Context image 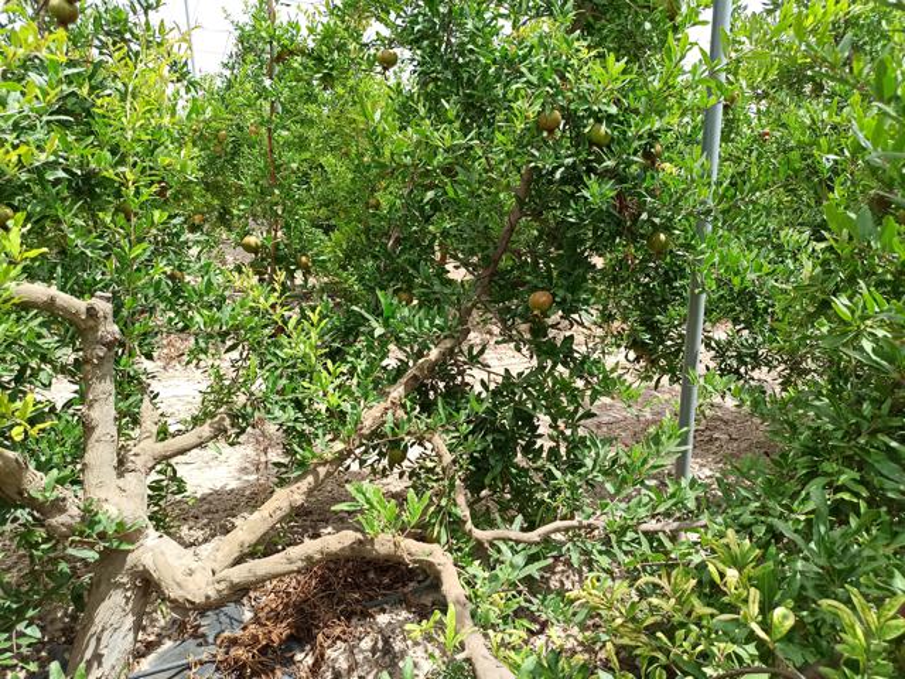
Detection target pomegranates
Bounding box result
[529,290,554,318]
[762,129,771,140]
[376,48,399,72]
[240,235,262,253]
[539,109,563,140]
[648,231,666,259]
[48,0,79,27]
[590,123,611,147]
[0,202,14,229]
[297,255,313,276]
[191,214,205,225]
[396,291,413,306]
[642,143,663,168]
